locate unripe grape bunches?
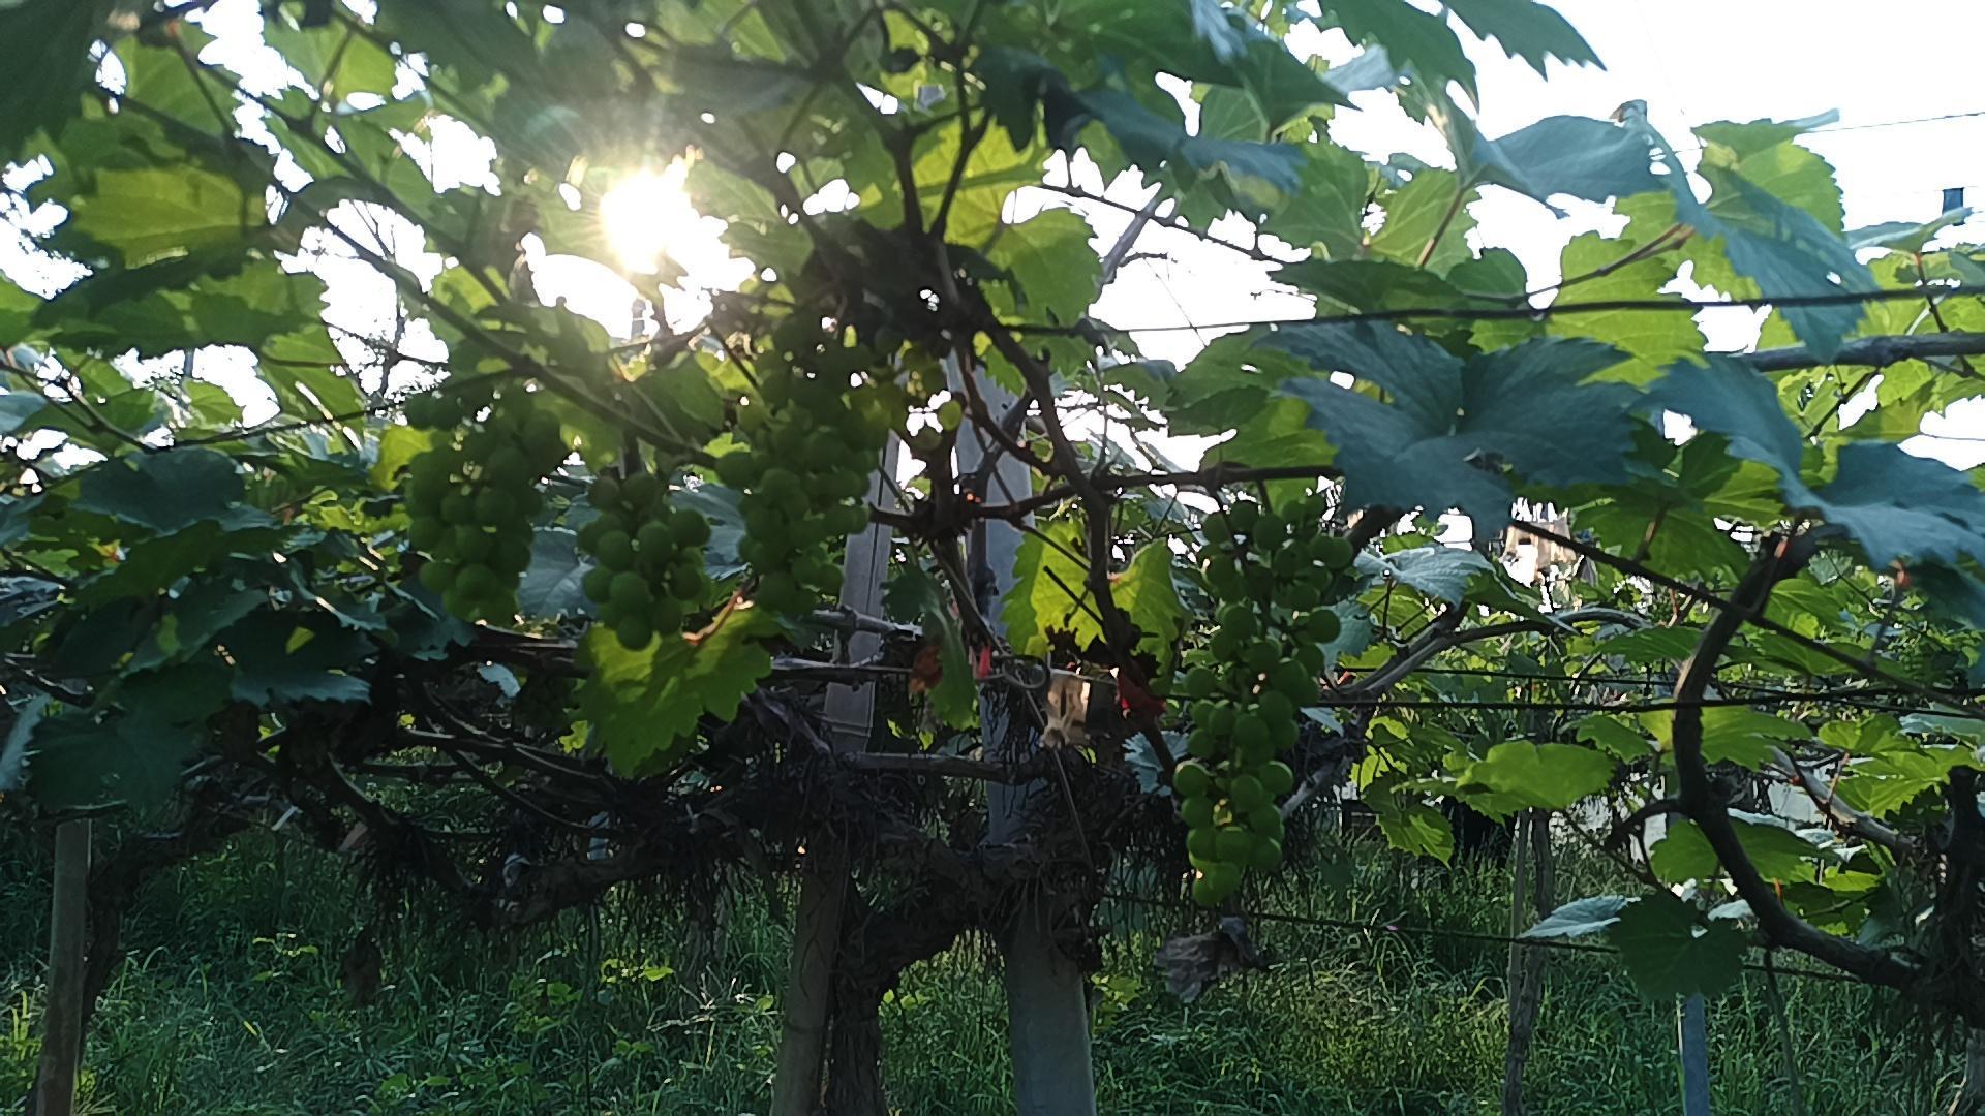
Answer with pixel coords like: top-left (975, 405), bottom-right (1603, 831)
top-left (404, 381), bottom-right (570, 625)
top-left (1172, 498), bottom-right (1354, 906)
top-left (576, 445), bottom-right (710, 648)
top-left (714, 292), bottom-right (905, 637)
